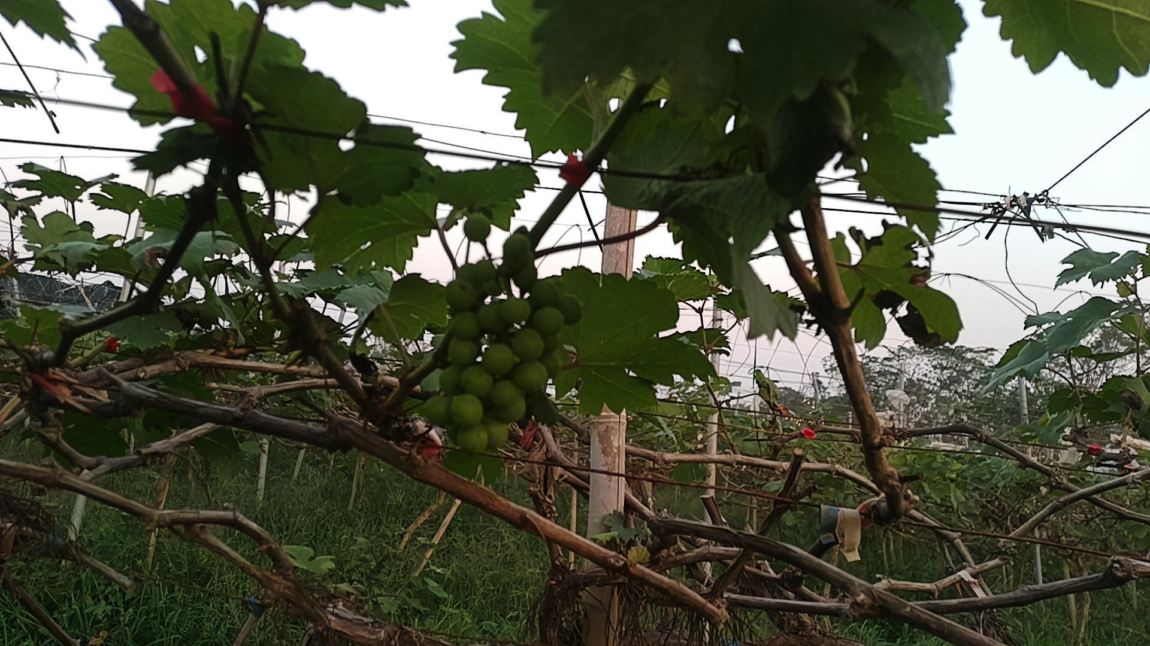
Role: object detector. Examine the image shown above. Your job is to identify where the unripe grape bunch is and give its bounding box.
[422,227,580,451]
